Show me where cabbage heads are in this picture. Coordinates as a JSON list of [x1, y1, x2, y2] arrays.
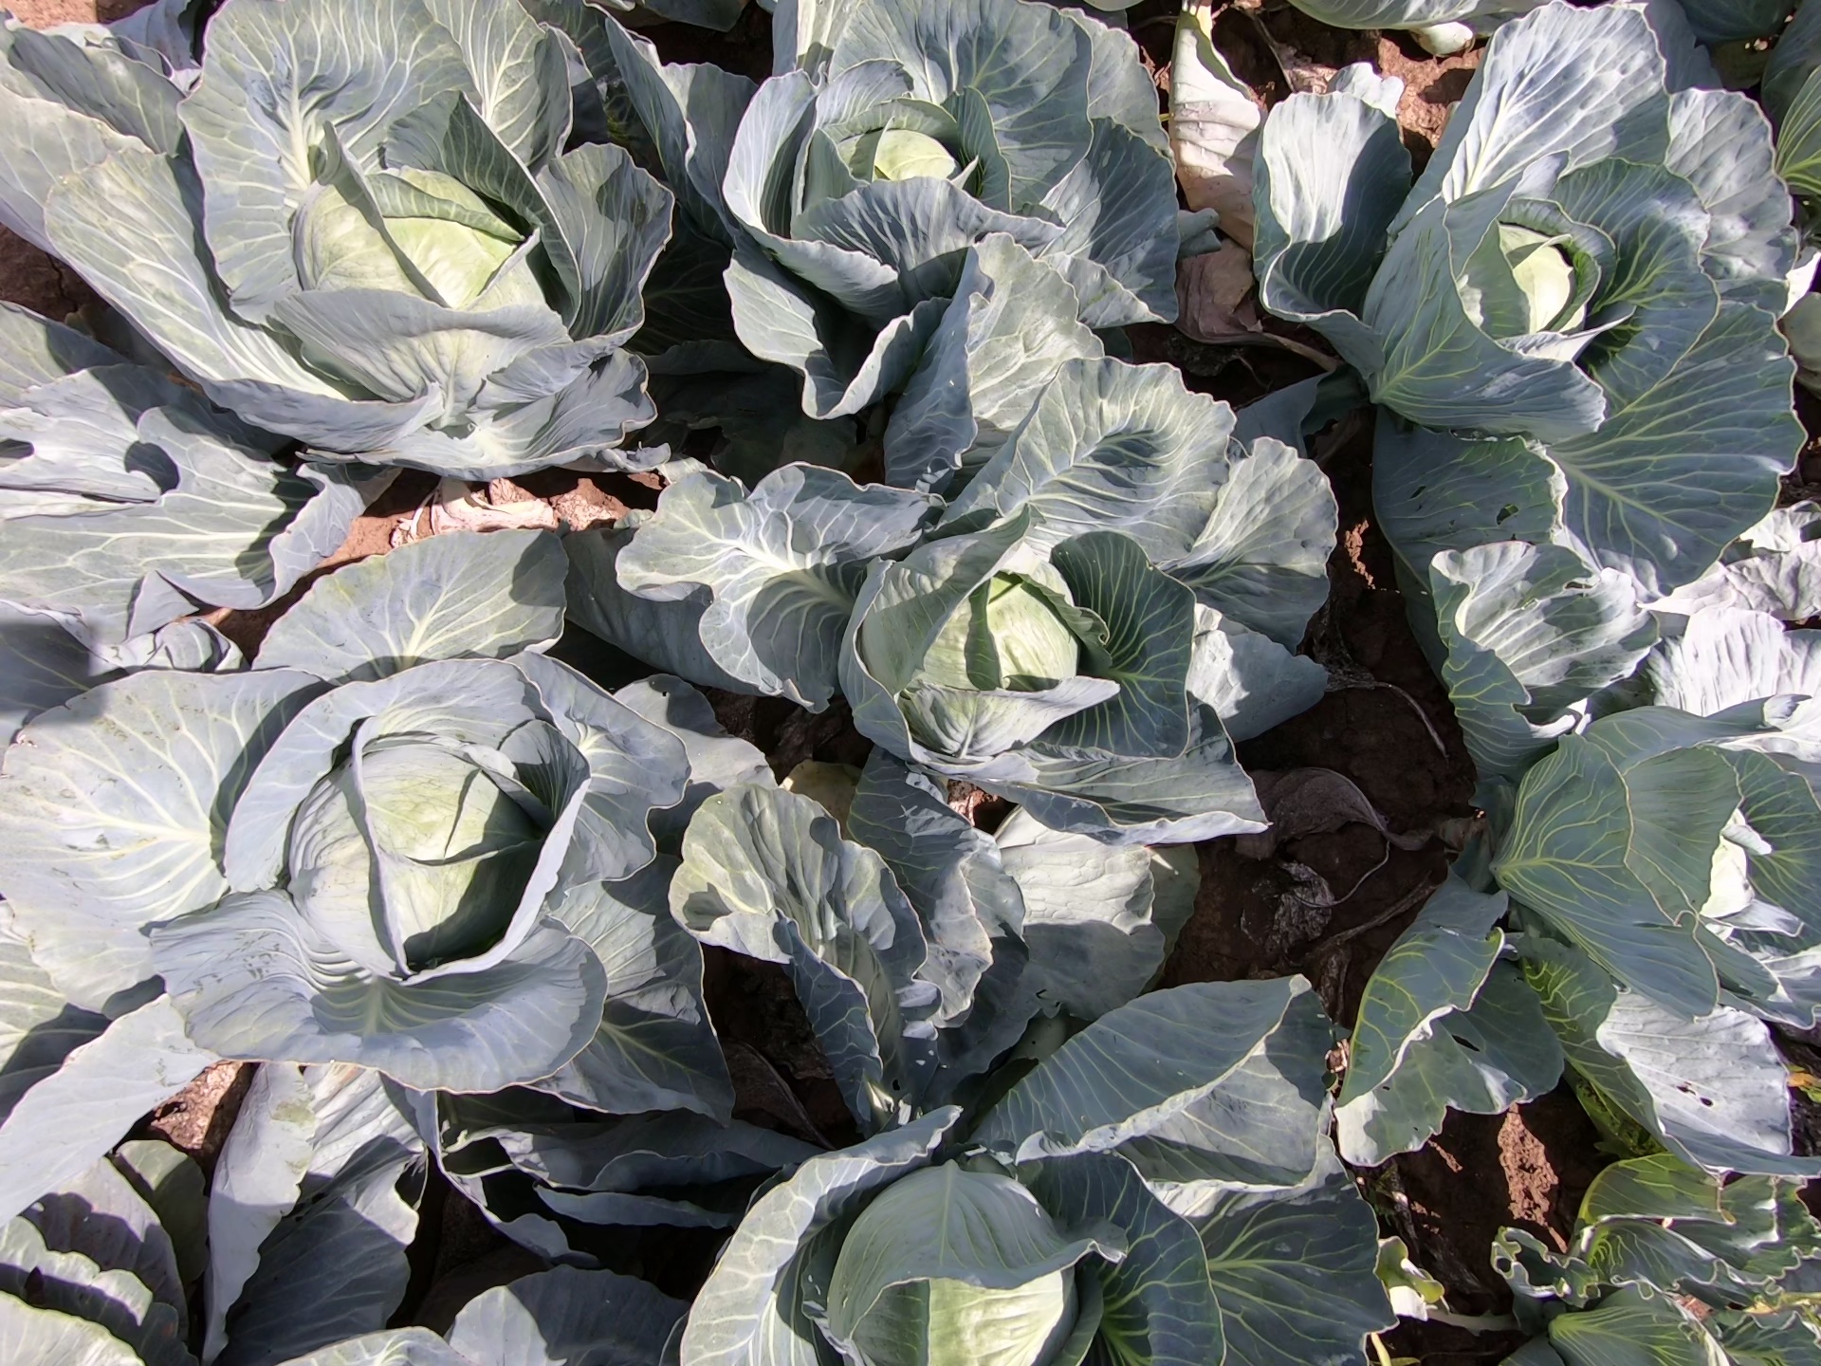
[[835, 1167, 1084, 1364], [862, 531, 1087, 754], [1603, 780, 1754, 934], [1385, 218, 1592, 411], [291, 737, 548, 974], [798, 125, 972, 282], [285, 168, 550, 395]]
